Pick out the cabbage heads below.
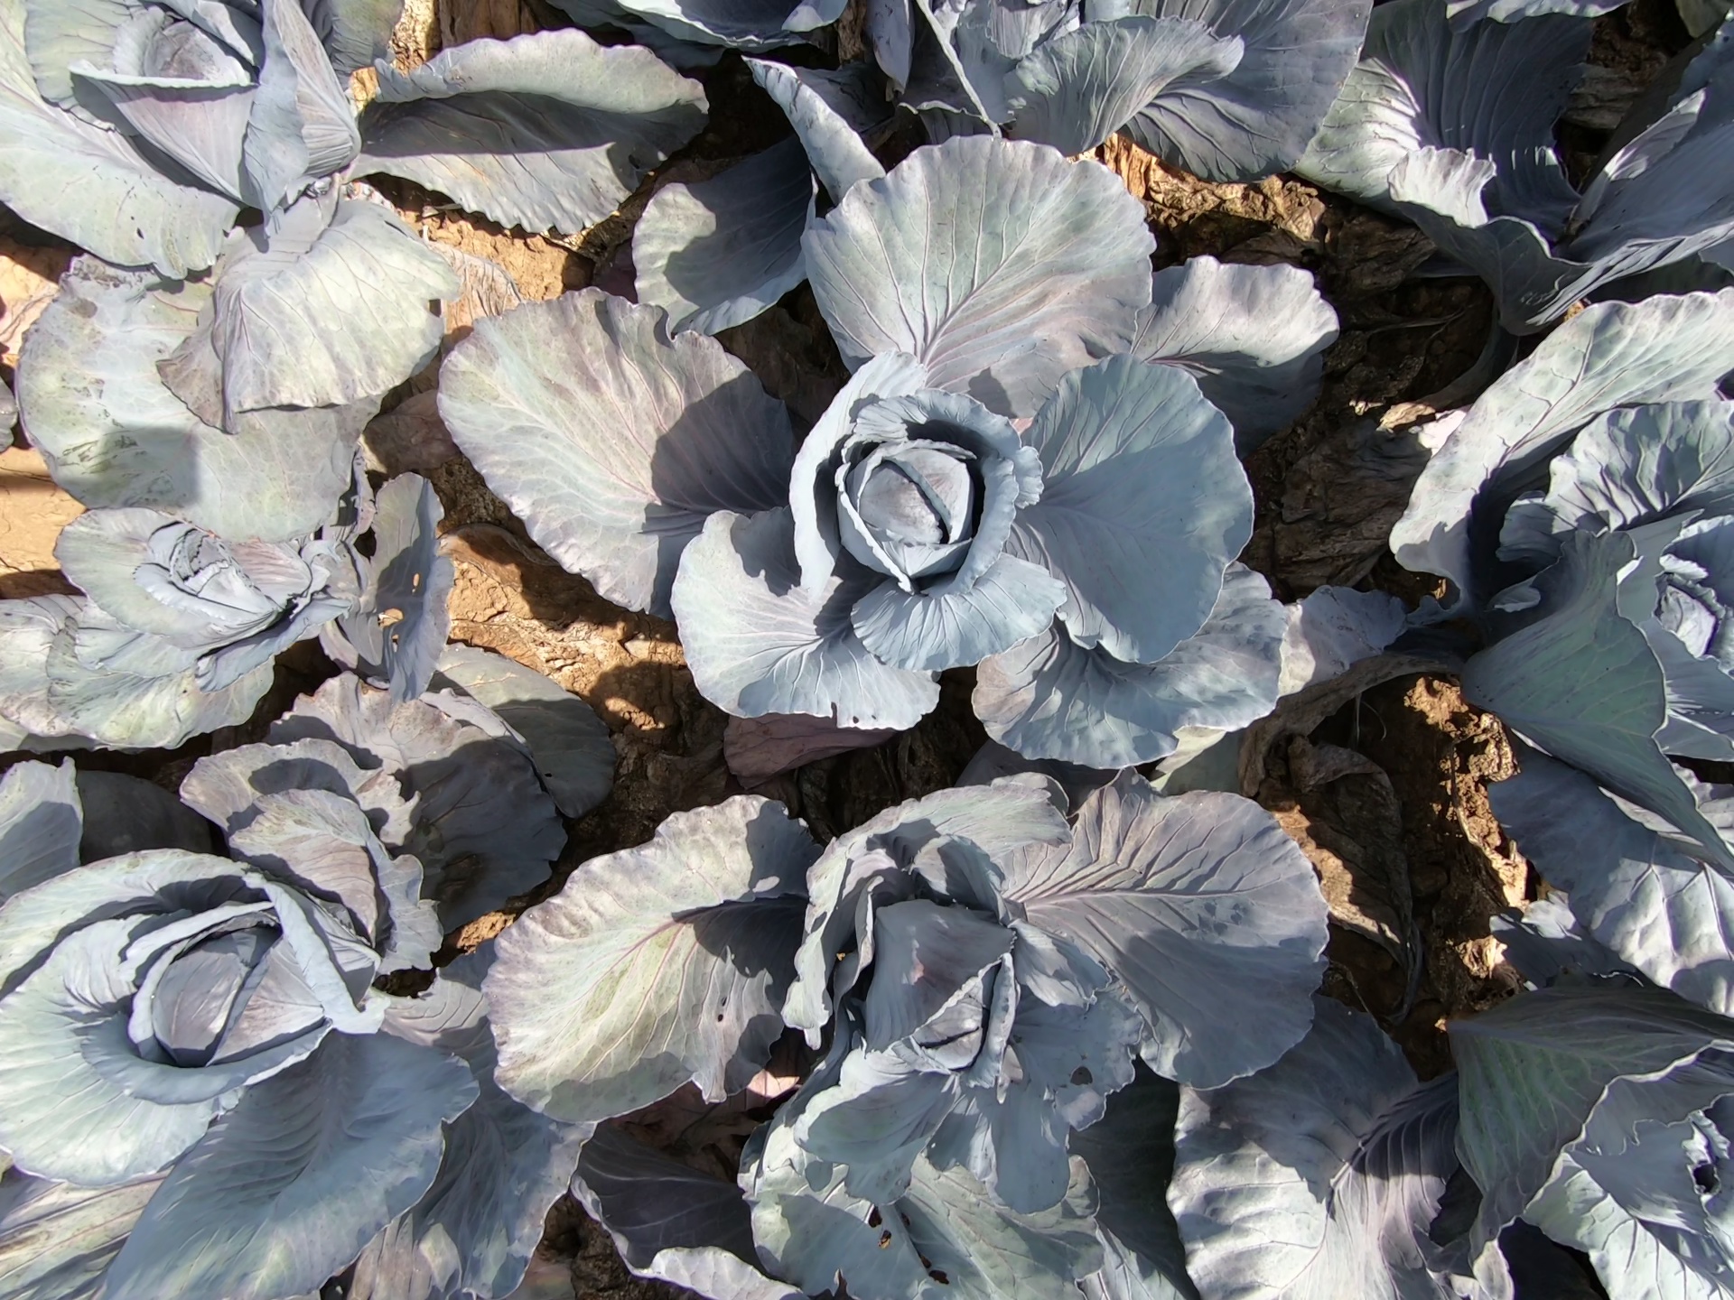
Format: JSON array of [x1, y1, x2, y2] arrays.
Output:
[[957, 0, 1080, 119], [135, 3, 292, 155], [1558, 1063, 1719, 1225], [1587, 576, 1724, 682], [143, 930, 315, 1062], [166, 519, 301, 616], [877, 924, 1021, 1072], [844, 447, 976, 578]]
